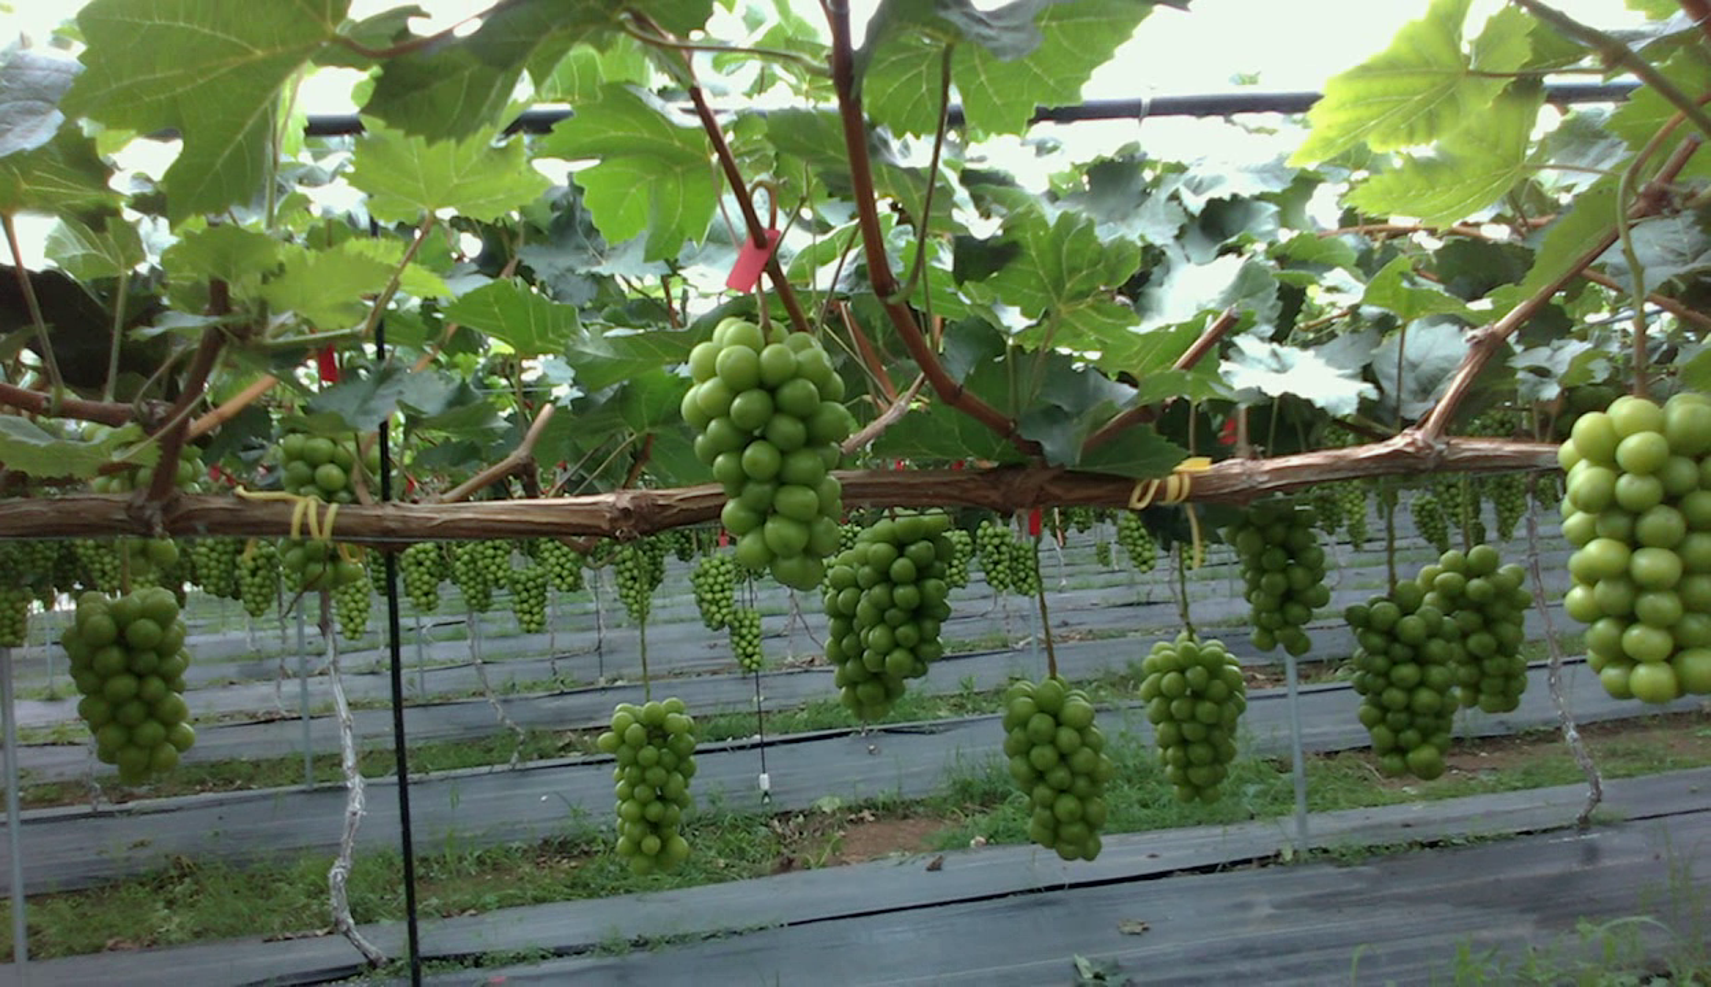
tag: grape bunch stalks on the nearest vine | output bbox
[754,281,770,337]
[1615,110,1685,396]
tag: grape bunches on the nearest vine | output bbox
[680,315,849,592]
[1557,391,1710,702]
